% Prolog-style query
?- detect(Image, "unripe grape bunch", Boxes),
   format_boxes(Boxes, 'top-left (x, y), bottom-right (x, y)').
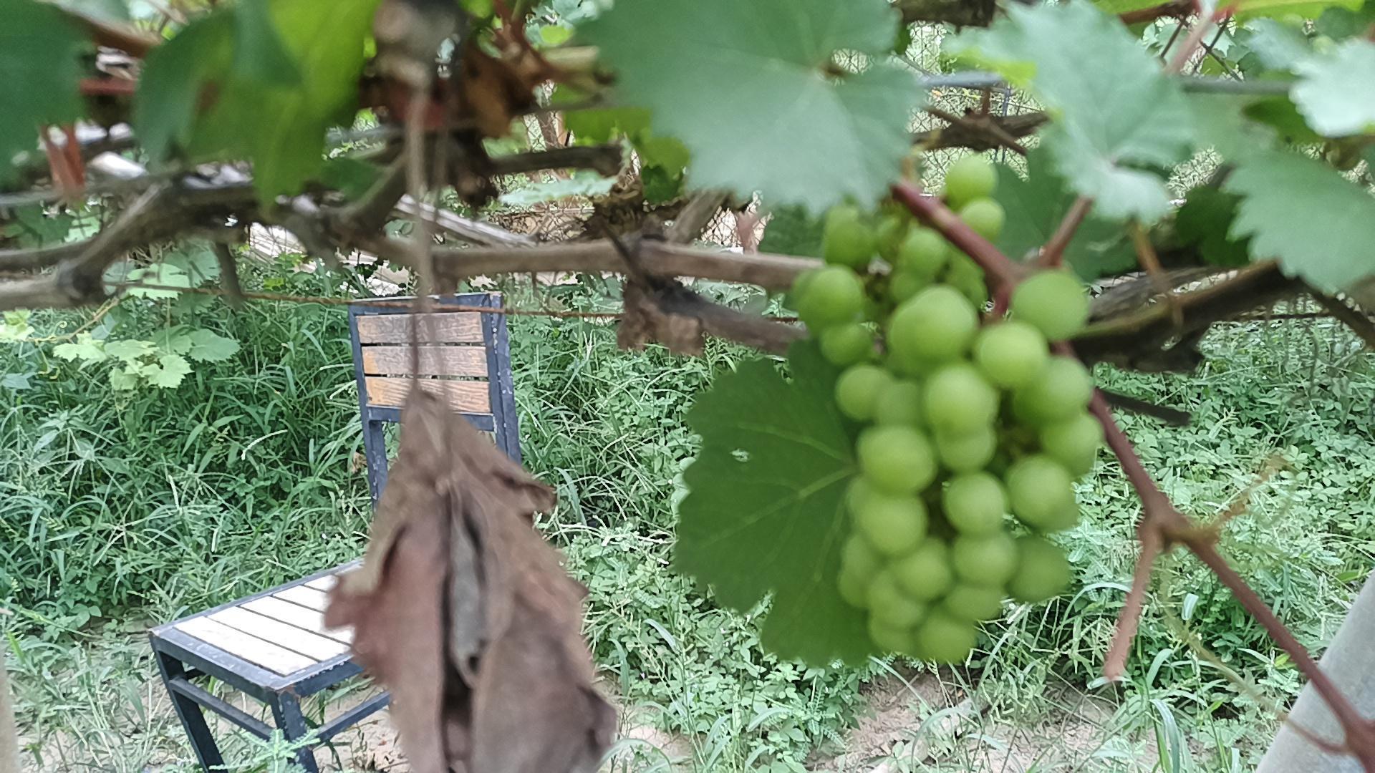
top-left (794, 155), bottom-right (1109, 663)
